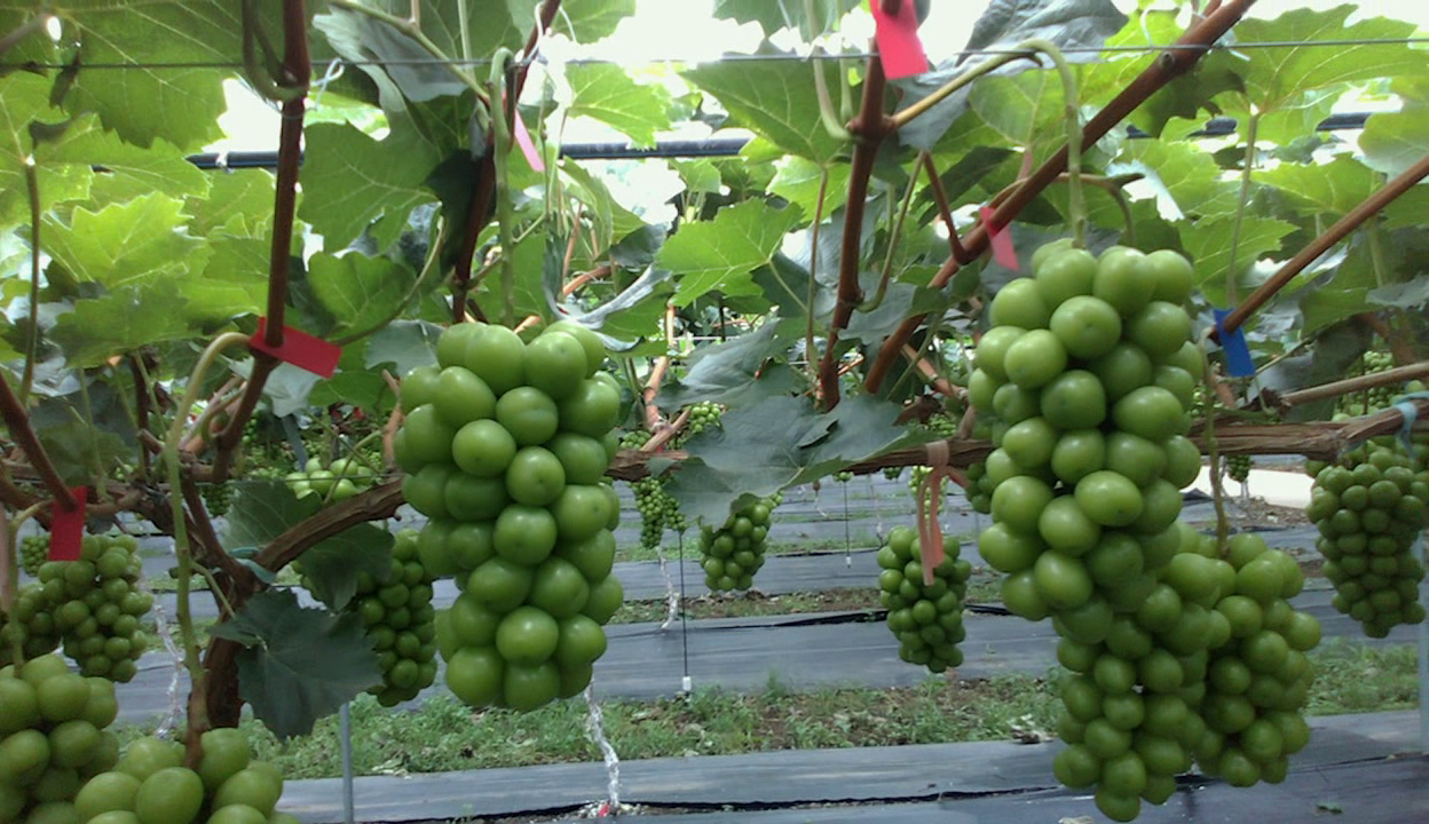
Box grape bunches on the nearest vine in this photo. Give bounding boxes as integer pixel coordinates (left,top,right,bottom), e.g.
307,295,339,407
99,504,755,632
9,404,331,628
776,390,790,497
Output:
0,655,119,823
968,238,1205,642
393,318,626,713
72,728,294,823
1052,552,1231,821
0,583,63,668
1193,532,1320,787
37,534,153,682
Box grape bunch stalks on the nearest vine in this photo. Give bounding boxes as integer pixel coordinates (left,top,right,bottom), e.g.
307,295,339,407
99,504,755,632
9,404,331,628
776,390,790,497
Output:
890,39,1087,251
163,331,250,769
1199,326,1227,560
7,497,52,679
488,50,514,331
